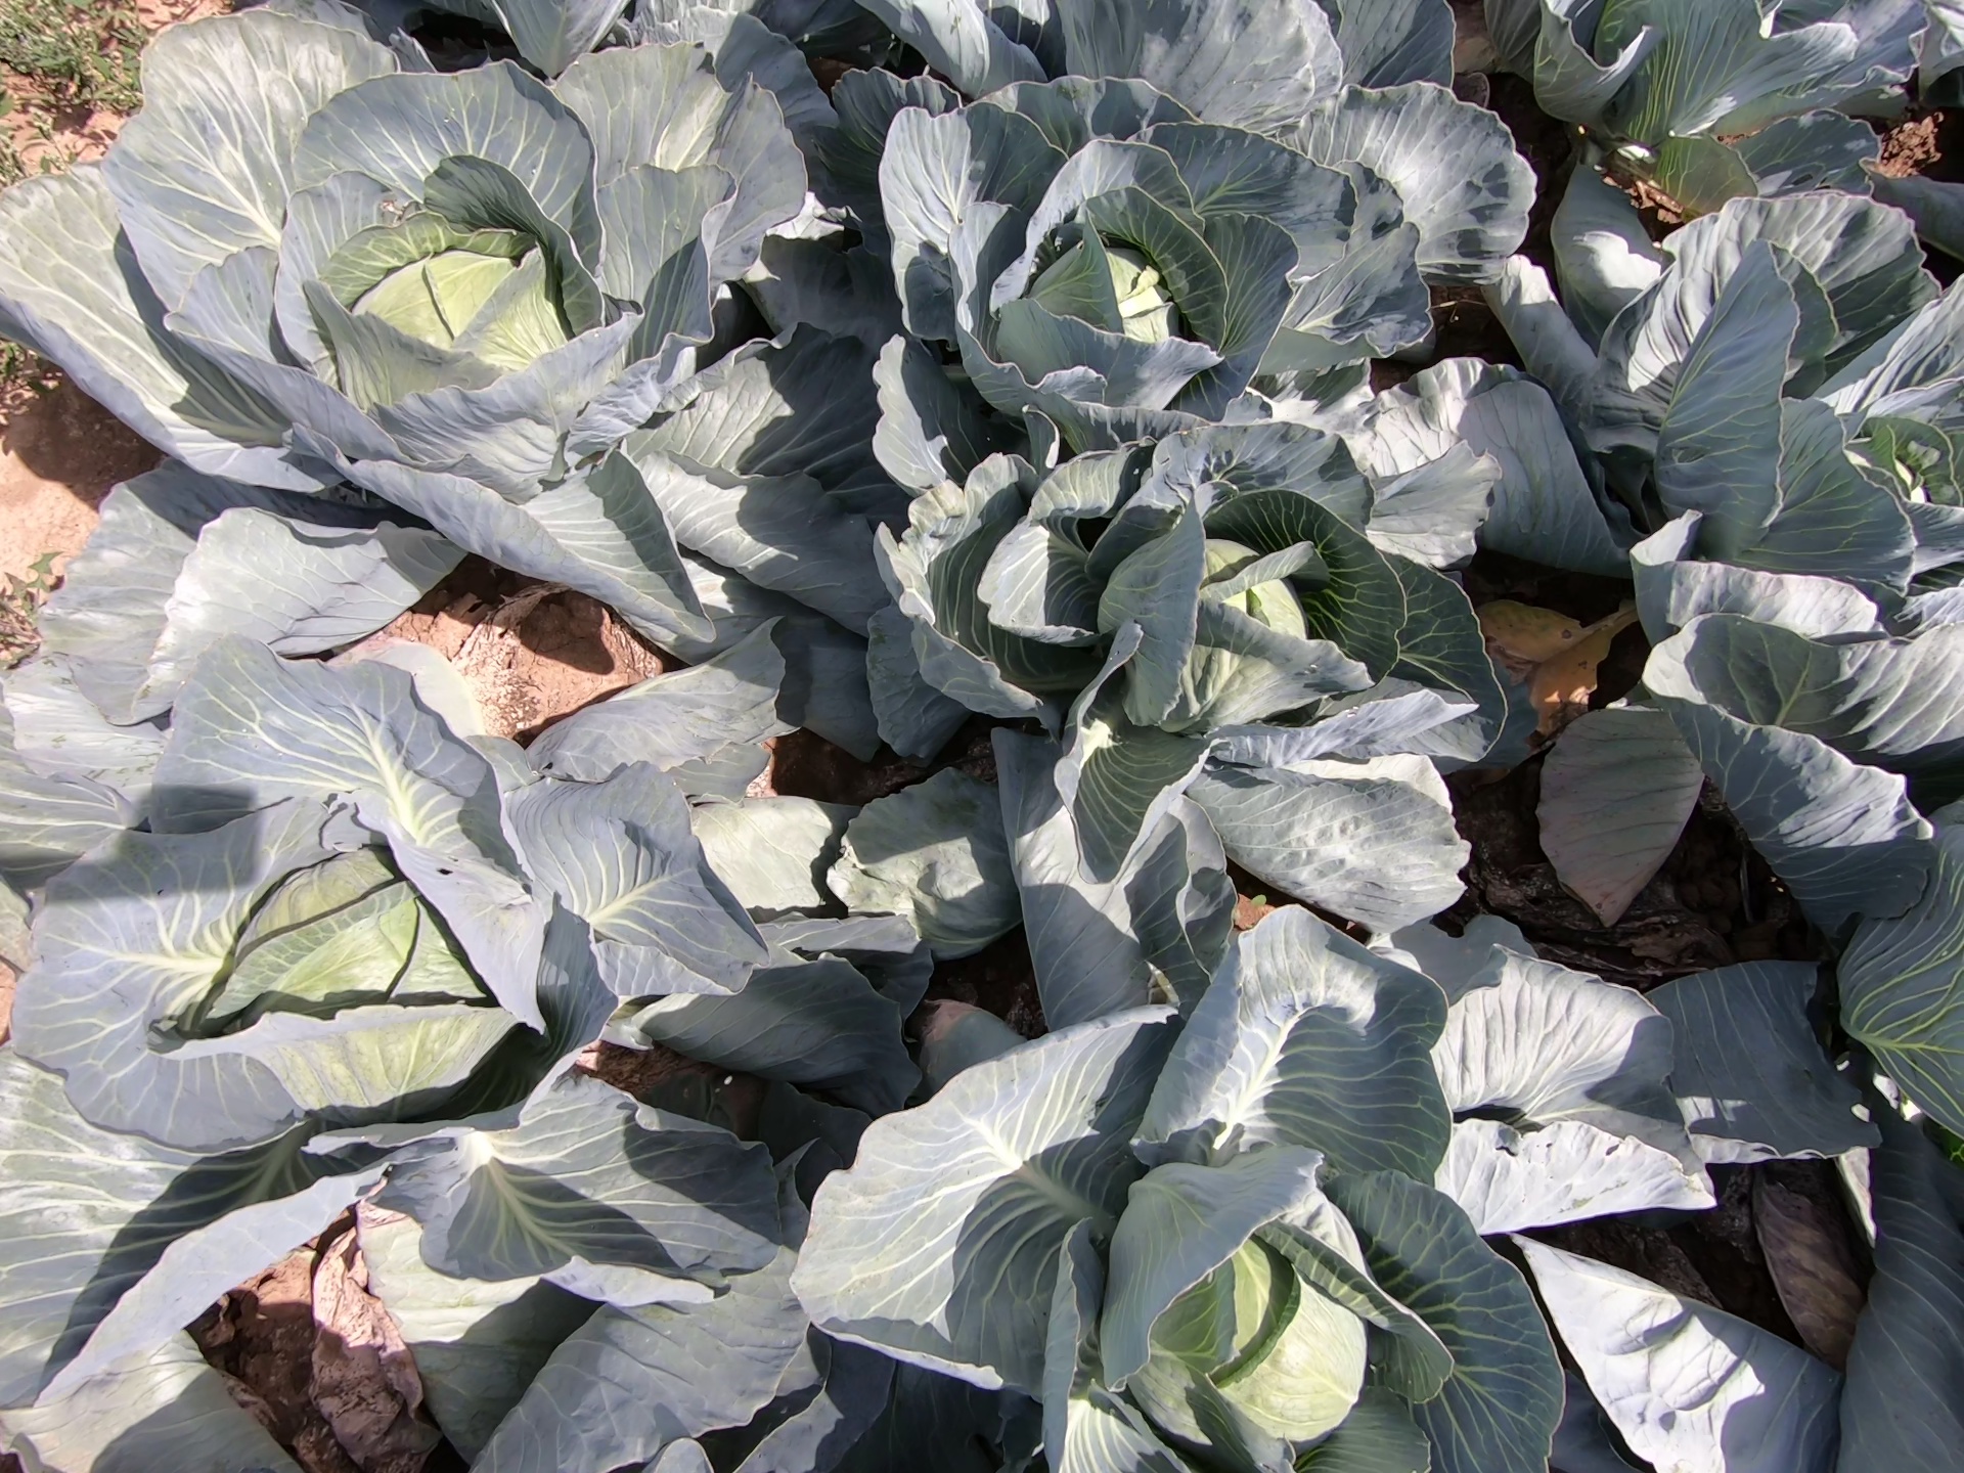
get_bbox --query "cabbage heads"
[234,850,534,1119]
[342,238,595,484]
[1792,432,1932,556]
[1112,537,1314,730]
[1116,1170,1375,1464]
[1025,245,1189,408]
